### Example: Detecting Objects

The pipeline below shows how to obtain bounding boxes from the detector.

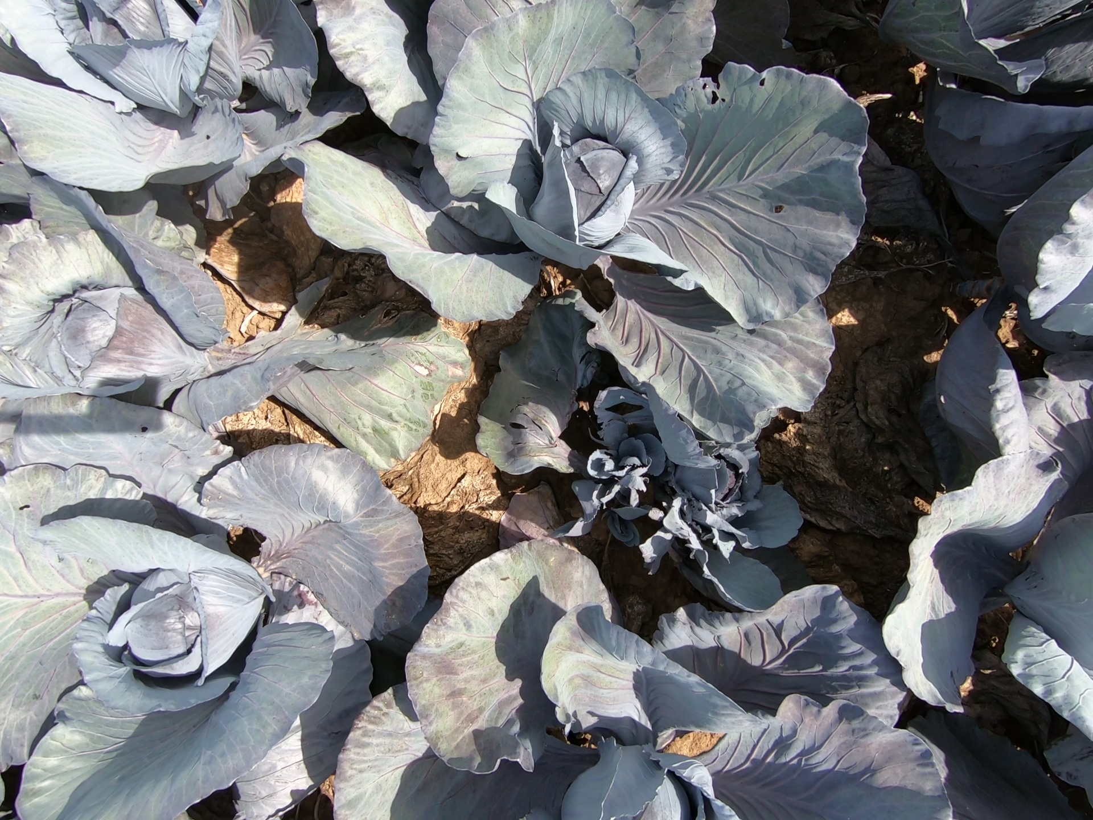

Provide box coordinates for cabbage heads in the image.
[542,139,635,244]
[58,287,168,382]
[680,454,738,503]
[126,563,250,674]
[563,757,690,817]
[87,1,211,104]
